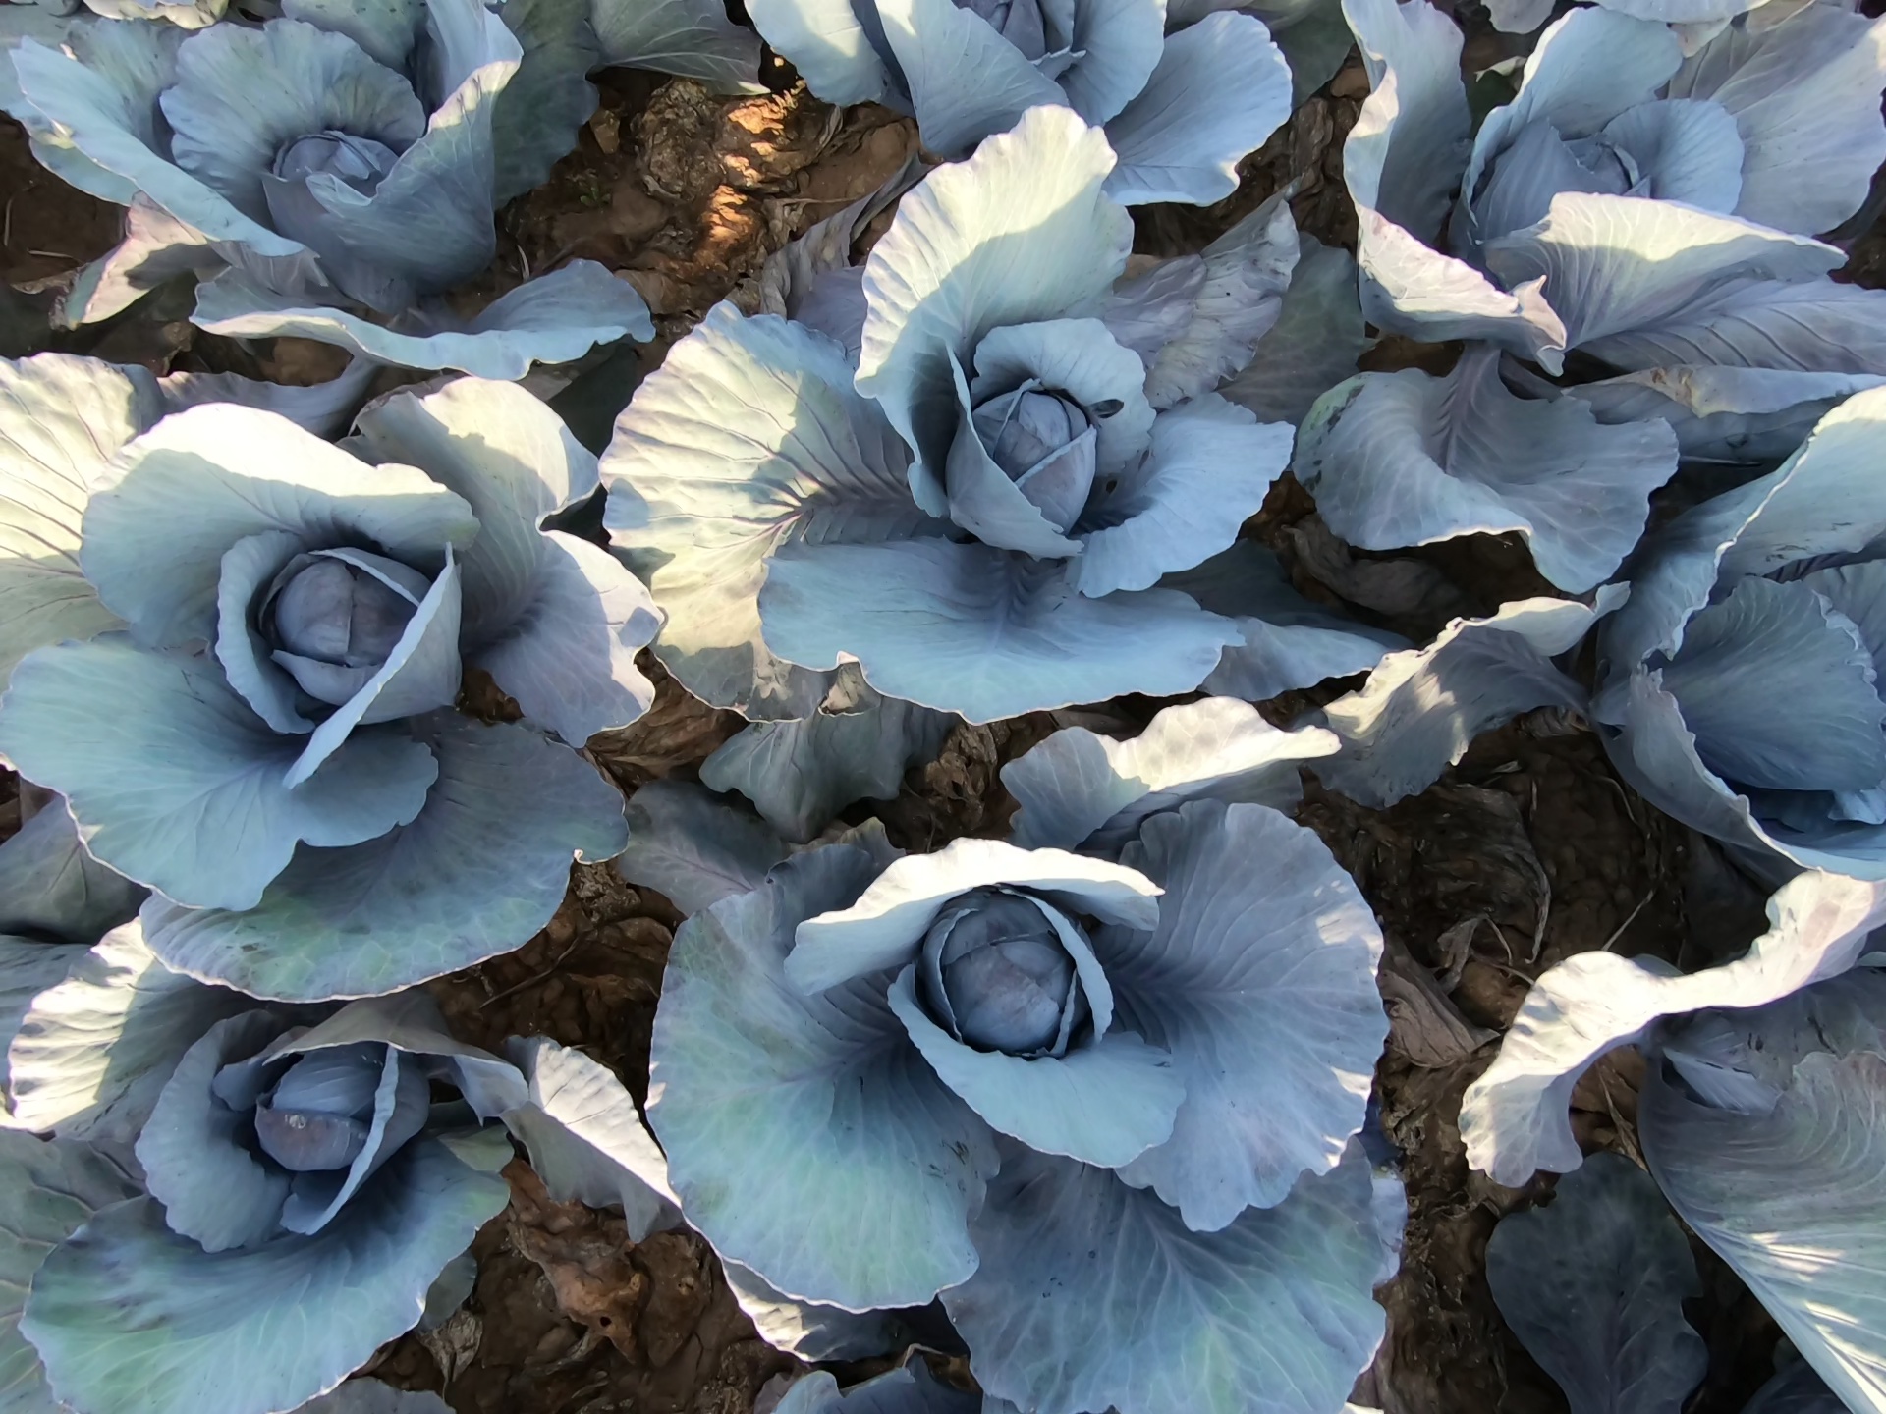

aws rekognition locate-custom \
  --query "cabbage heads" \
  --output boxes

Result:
[275,557,436,696]
[268,1040,412,1162]
[268,132,428,271]
[951,387,1095,538]
[928,894,1094,1046]
[1500,134,1644,275]
[925,0,1038,108]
